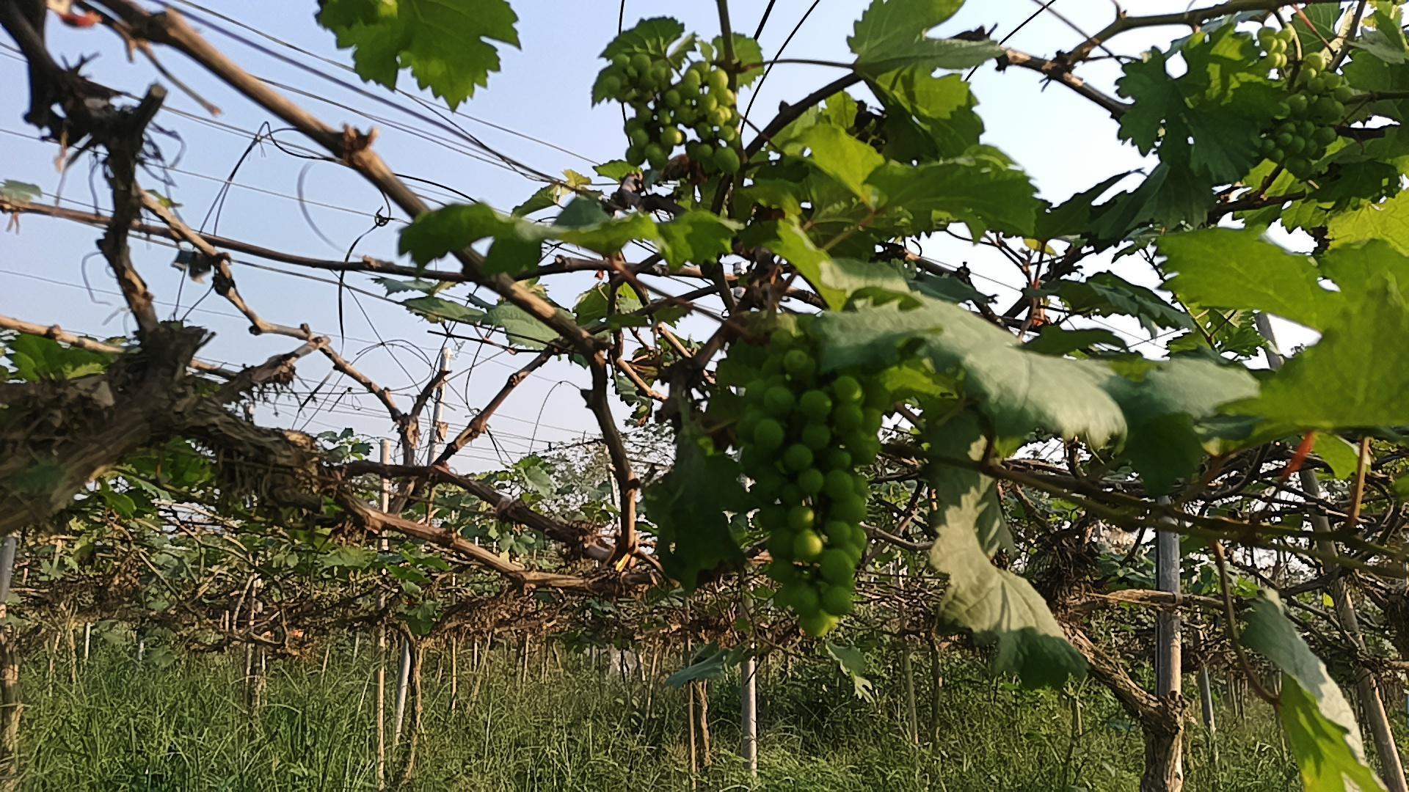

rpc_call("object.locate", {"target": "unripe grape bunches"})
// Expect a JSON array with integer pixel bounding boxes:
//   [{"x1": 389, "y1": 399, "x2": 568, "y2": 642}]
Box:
[
  {"x1": 601, "y1": 49, "x2": 740, "y2": 173},
  {"x1": 718, "y1": 315, "x2": 886, "y2": 635},
  {"x1": 1245, "y1": 27, "x2": 1351, "y2": 181}
]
